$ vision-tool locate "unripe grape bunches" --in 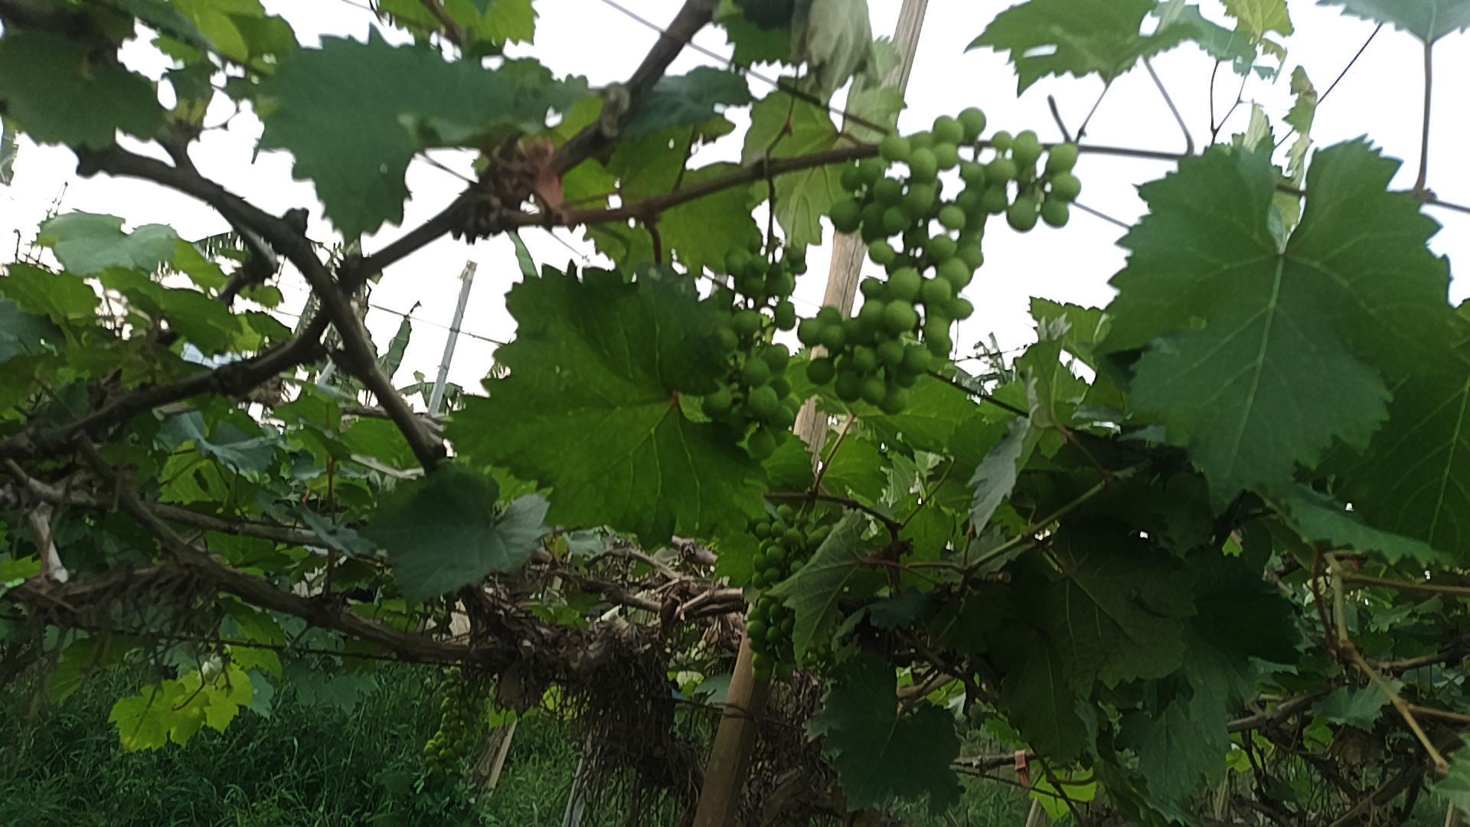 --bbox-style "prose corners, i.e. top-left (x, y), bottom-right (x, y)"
top-left (798, 109), bottom-right (1080, 413)
top-left (746, 502), bottom-right (831, 684)
top-left (423, 669), bottom-right (485, 771)
top-left (702, 247), bottom-right (805, 460)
